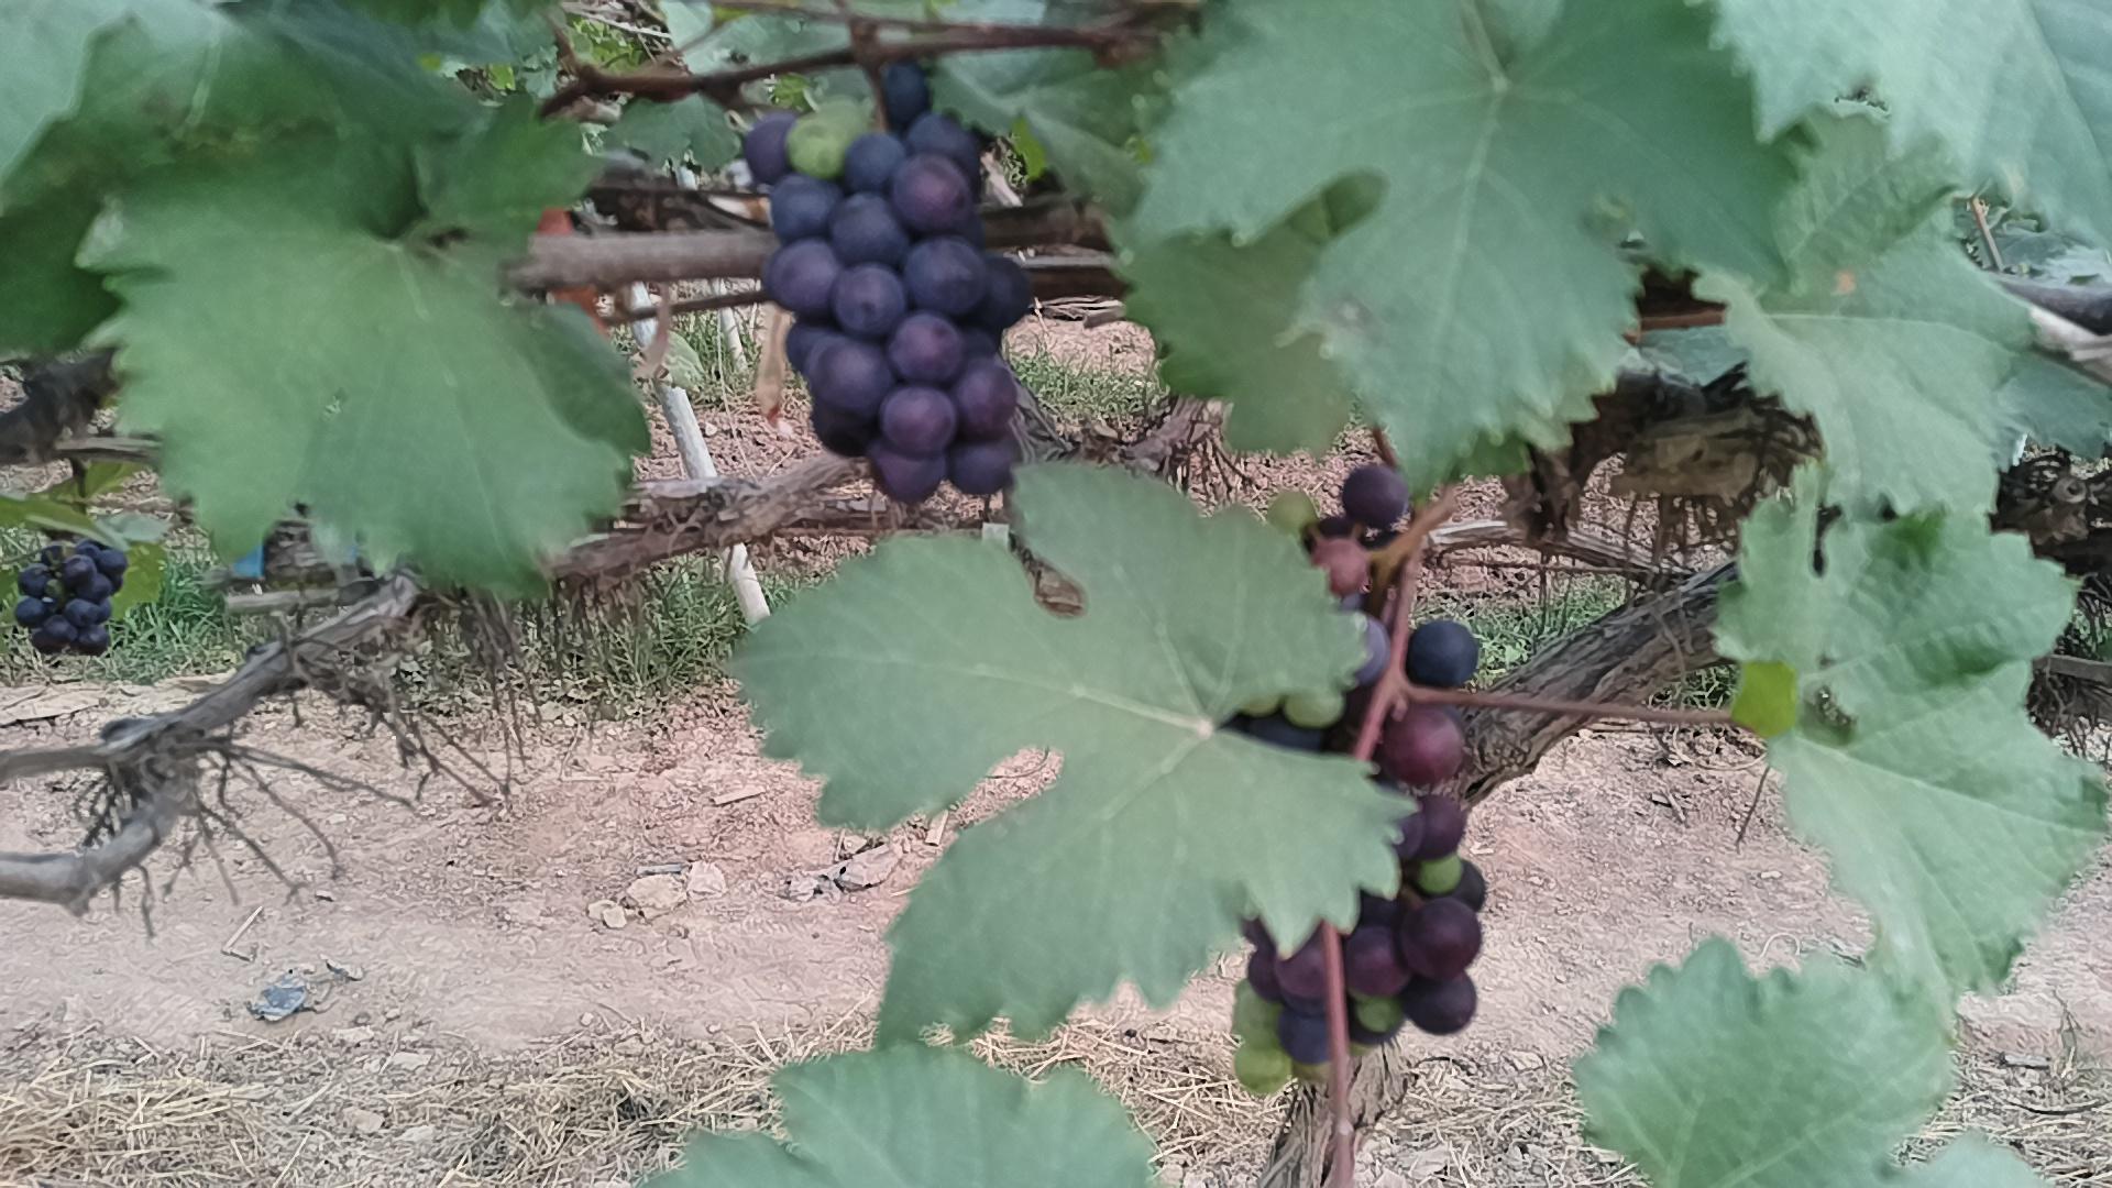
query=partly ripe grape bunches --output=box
[1230,462,1485,1093]
[741,65,1031,501]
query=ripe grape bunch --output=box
[14,539,128,654]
